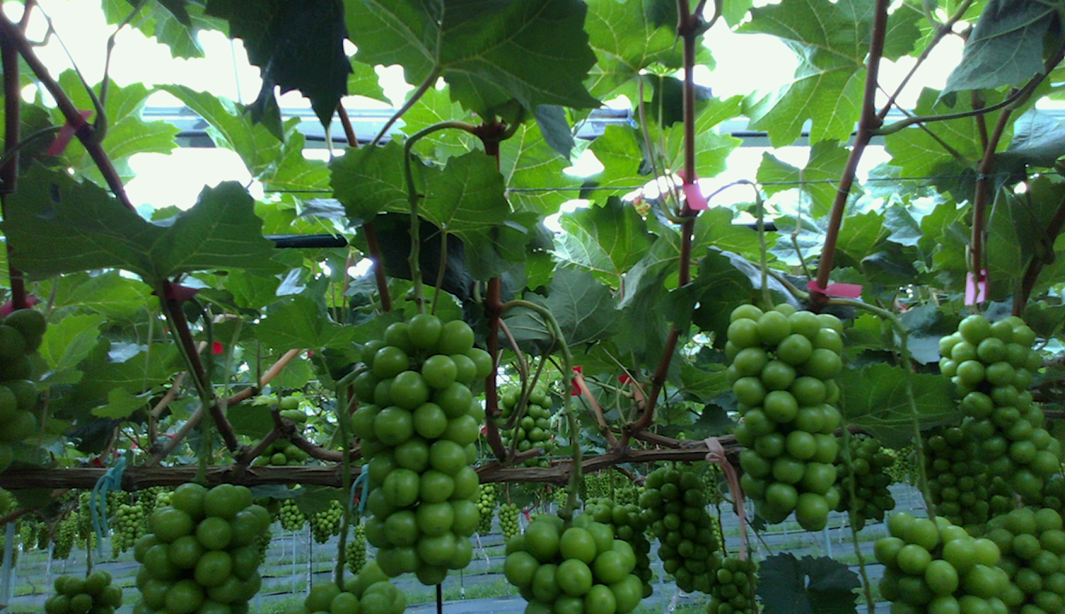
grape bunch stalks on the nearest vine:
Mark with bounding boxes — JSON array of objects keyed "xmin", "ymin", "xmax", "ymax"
[
  {"xmin": 707, "ymin": 178, "xmax": 774, "ymax": 310},
  {"xmin": 501, "ymin": 298, "xmax": 582, "ymax": 538},
  {"xmin": 335, "ymin": 368, "xmax": 367, "ymax": 592},
  {"xmin": 189, "ymin": 298, "xmax": 218, "ymax": 486},
  {"xmin": 825, "ymin": 298, "xmax": 937, "ymax": 525}
]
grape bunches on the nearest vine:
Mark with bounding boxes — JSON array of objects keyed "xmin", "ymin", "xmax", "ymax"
[
  {"xmin": 279, "ymin": 560, "xmax": 406, "ymax": 613},
  {"xmin": 724, "ymin": 303, "xmax": 844, "ymax": 531},
  {"xmin": 873, "ymin": 513, "xmax": 1010, "ymax": 613},
  {"xmin": 351, "ymin": 314, "xmax": 493, "ymax": 586},
  {"xmin": 131, "ymin": 483, "xmax": 271, "ymax": 613},
  {"xmin": 503, "ymin": 513, "xmax": 643, "ymax": 613},
  {"xmin": 937, "ymin": 313, "xmax": 1062, "ymax": 495},
  {"xmin": 982, "ymin": 507, "xmax": 1064, "ymax": 613}
]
